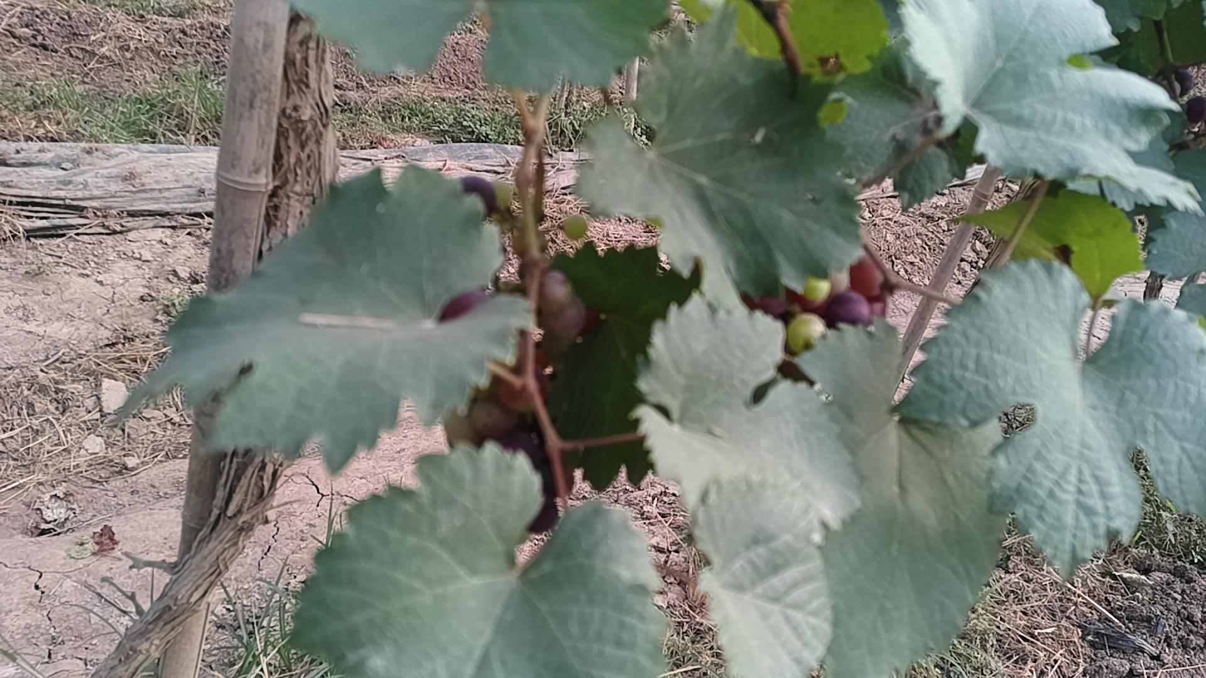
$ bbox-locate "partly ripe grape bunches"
[742,244,905,382]
[439,176,599,533]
